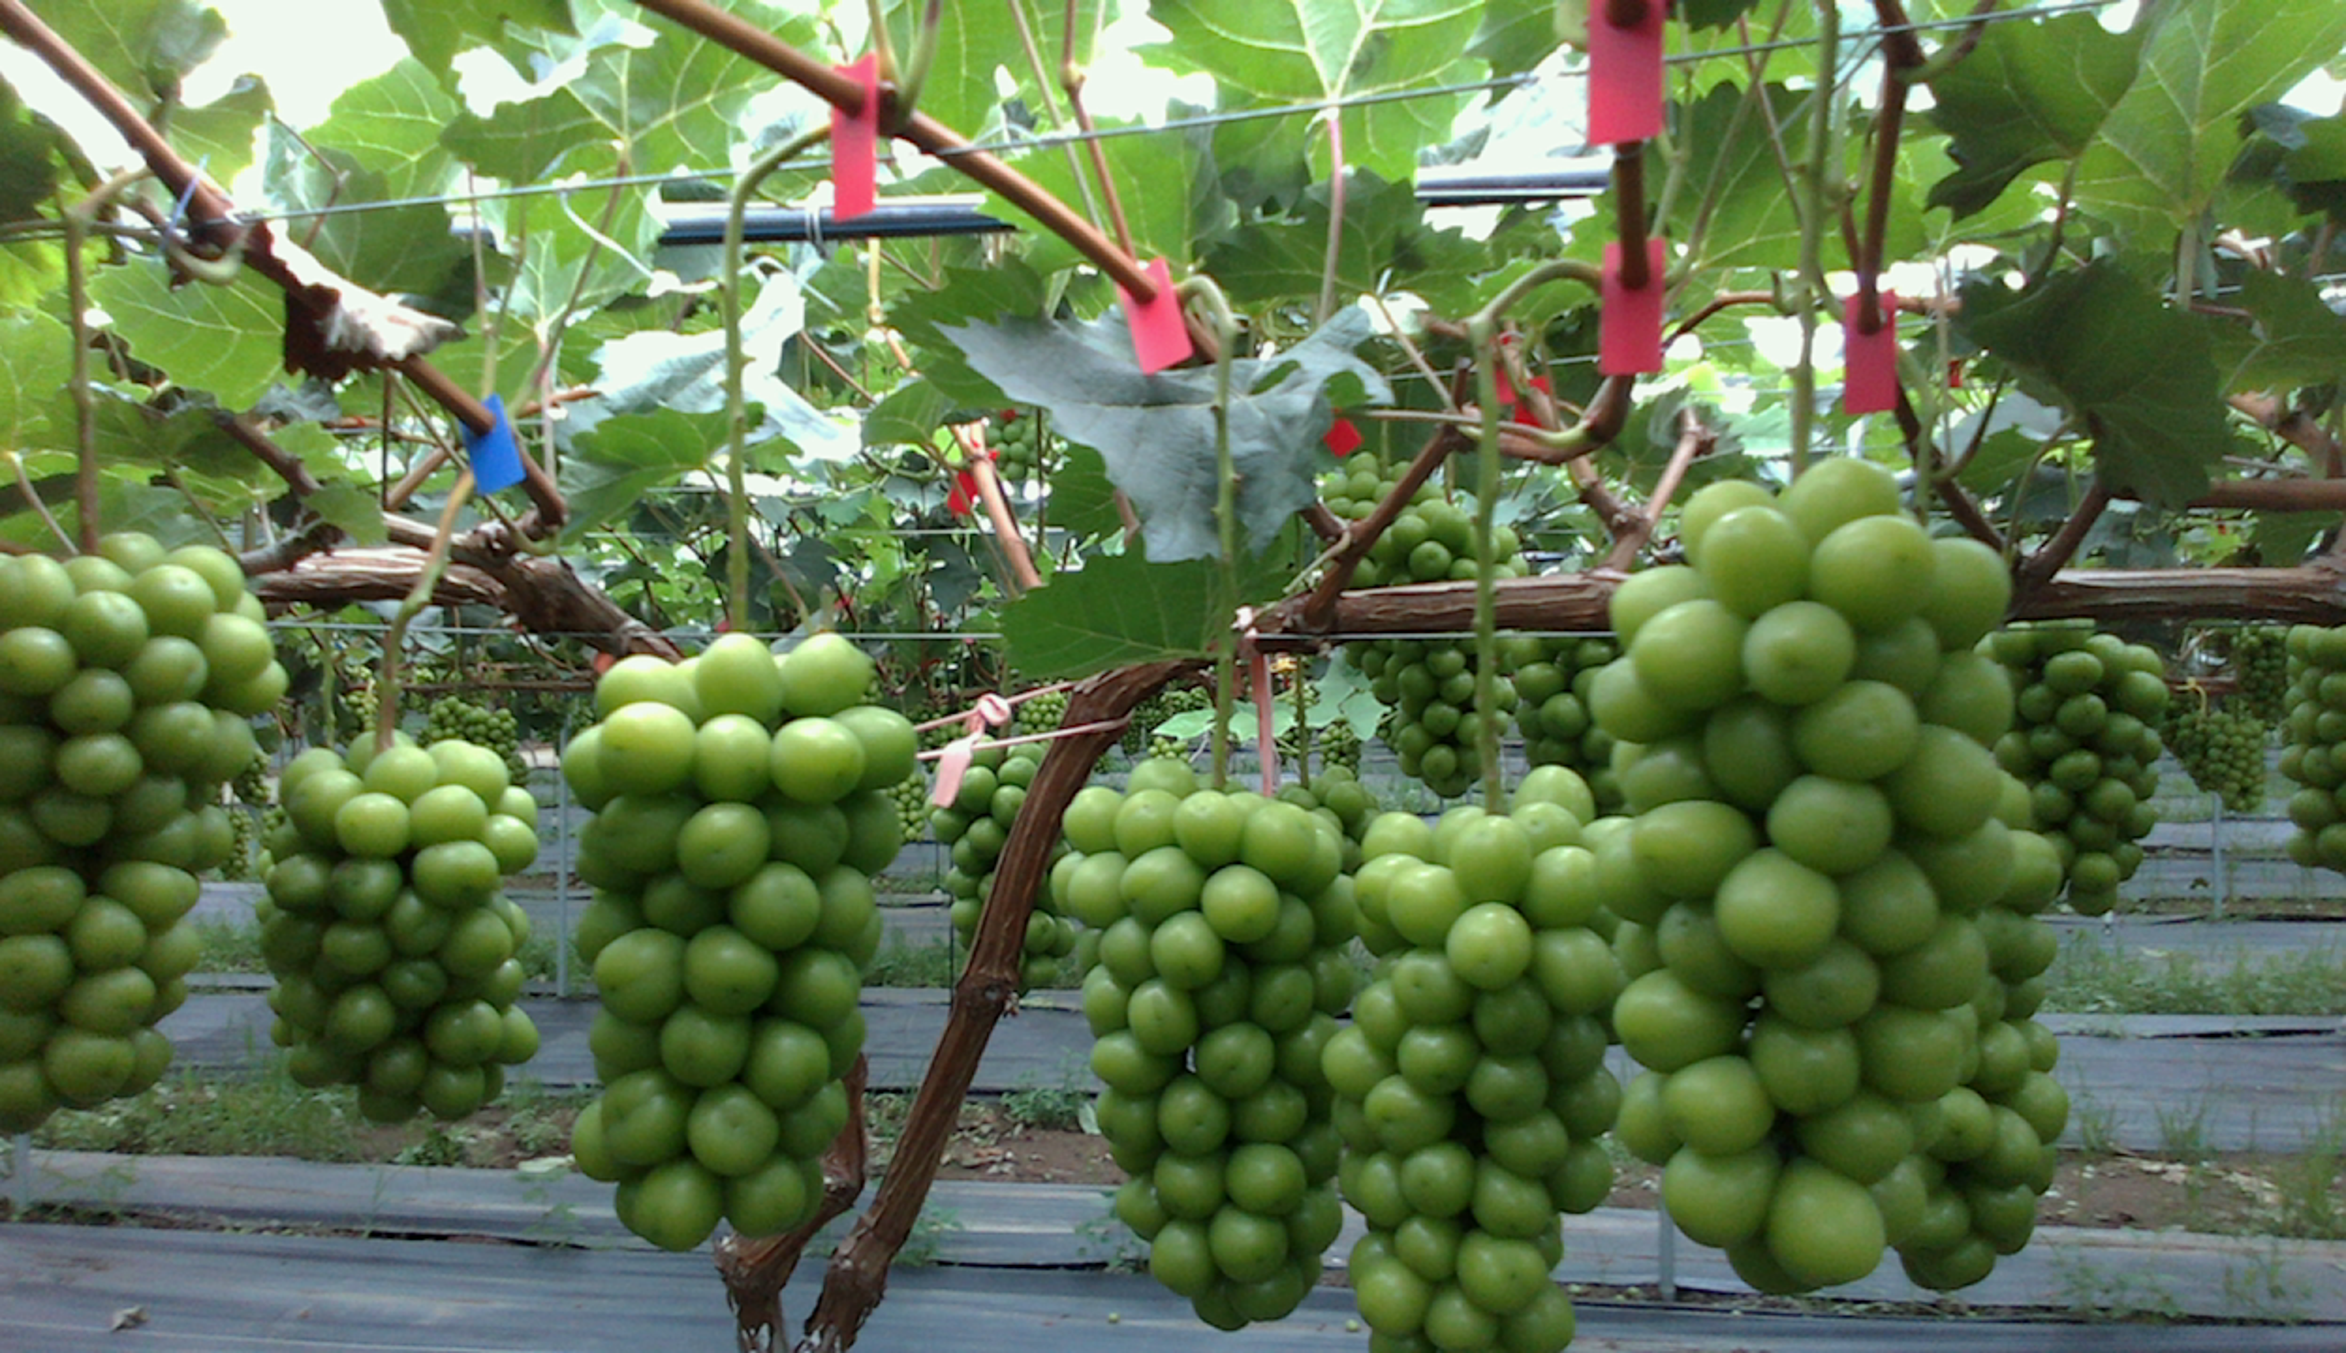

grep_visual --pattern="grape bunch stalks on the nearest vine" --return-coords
[1468,259,1600,817]
[66,167,152,554]
[1788,8,1840,485]
[374,470,474,754]
[724,122,835,633]
[1173,278,1237,793]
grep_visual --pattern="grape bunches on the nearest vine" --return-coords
[1320,767,1634,1351]
[558,631,919,1253]
[1053,759,1359,1332]
[1587,457,2017,1295]
[1893,772,2073,1293]
[2,532,289,1135]
[252,729,541,1126]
